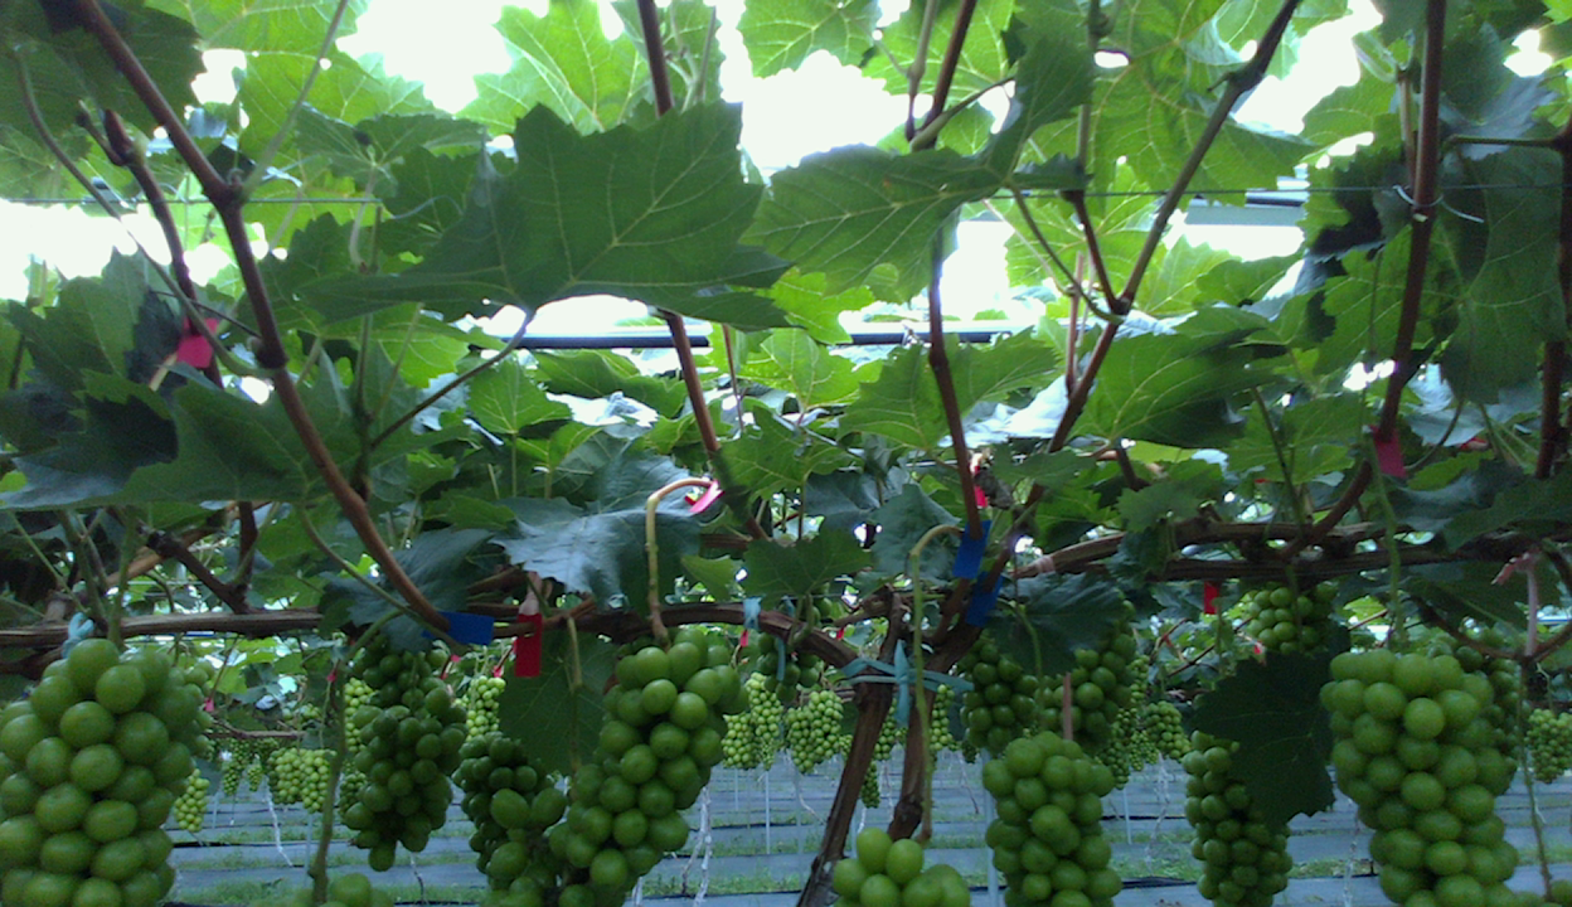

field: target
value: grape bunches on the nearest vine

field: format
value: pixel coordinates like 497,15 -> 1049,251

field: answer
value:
1320,647 -> 1523,906
549,627 -> 751,892
829,826 -> 972,906
486,785 -> 622,904
980,729 -> 1124,906
0,639 -> 198,904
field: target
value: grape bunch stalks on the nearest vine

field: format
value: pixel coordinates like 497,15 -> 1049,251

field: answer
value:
909,524 -> 959,836
106,350 -> 176,641
1365,438 -> 1411,650
567,619 -> 582,770
999,597 -> 1047,727
645,477 -> 708,644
